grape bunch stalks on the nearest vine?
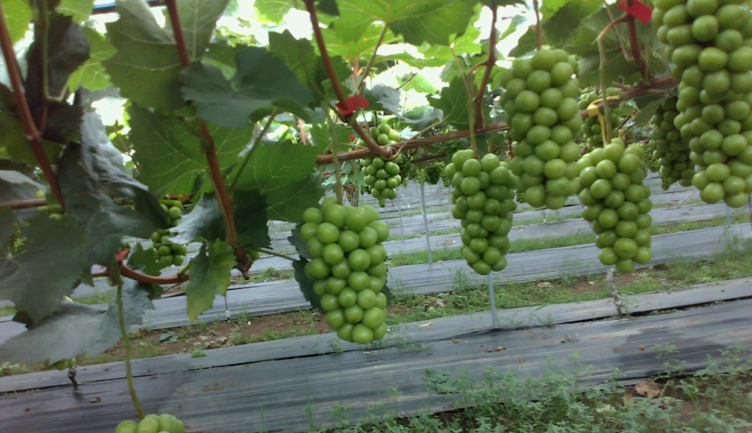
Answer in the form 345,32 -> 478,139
111,262 -> 144,418
592,19 -> 620,144
323,91 -> 342,203
533,1 -> 541,49
466,61 -> 483,160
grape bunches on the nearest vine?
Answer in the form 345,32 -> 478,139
577,138 -> 653,274
444,149 -> 519,275
674,86 -> 751,209
299,196 -> 389,344
652,1 -> 751,105
500,49 -> 581,210
116,413 -> 186,432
